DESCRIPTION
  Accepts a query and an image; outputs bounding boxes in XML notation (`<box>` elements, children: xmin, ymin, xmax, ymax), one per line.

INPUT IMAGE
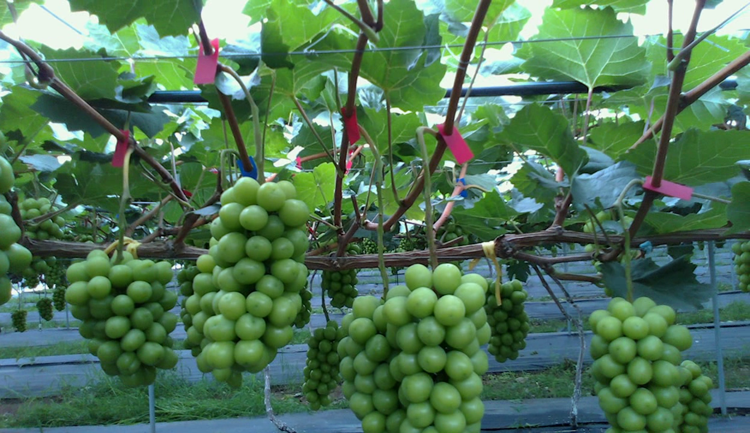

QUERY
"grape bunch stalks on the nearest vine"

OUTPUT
<box><xmin>114</xmin><ymin>161</ymin><xmax>132</xmax><ymax>263</ymax></box>
<box><xmin>613</xmin><ymin>180</ymin><xmax>633</xmax><ymax>301</ymax></box>
<box><xmin>221</xmin><ymin>64</ymin><xmax>266</xmax><ymax>183</ymax></box>
<box><xmin>415</xmin><ymin>126</ymin><xmax>438</xmax><ymax>269</ymax></box>
<box><xmin>359</xmin><ymin>125</ymin><xmax>389</xmax><ymax>301</ymax></box>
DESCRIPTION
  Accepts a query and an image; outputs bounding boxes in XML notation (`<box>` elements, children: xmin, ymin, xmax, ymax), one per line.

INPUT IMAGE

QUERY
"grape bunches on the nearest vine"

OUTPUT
<box><xmin>383</xmin><ymin>264</ymin><xmax>492</xmax><ymax>432</ymax></box>
<box><xmin>589</xmin><ymin>296</ymin><xmax>691</xmax><ymax>432</ymax></box>
<box><xmin>186</xmin><ymin>177</ymin><xmax>309</xmax><ymax>387</ymax></box>
<box><xmin>64</xmin><ymin>249</ymin><xmax>178</xmax><ymax>388</ymax></box>
<box><xmin>0</xmin><ymin>158</ymin><xmax>32</xmax><ymax>304</ymax></box>
<box><xmin>338</xmin><ymin>294</ymin><xmax>406</xmax><ymax>432</ymax></box>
